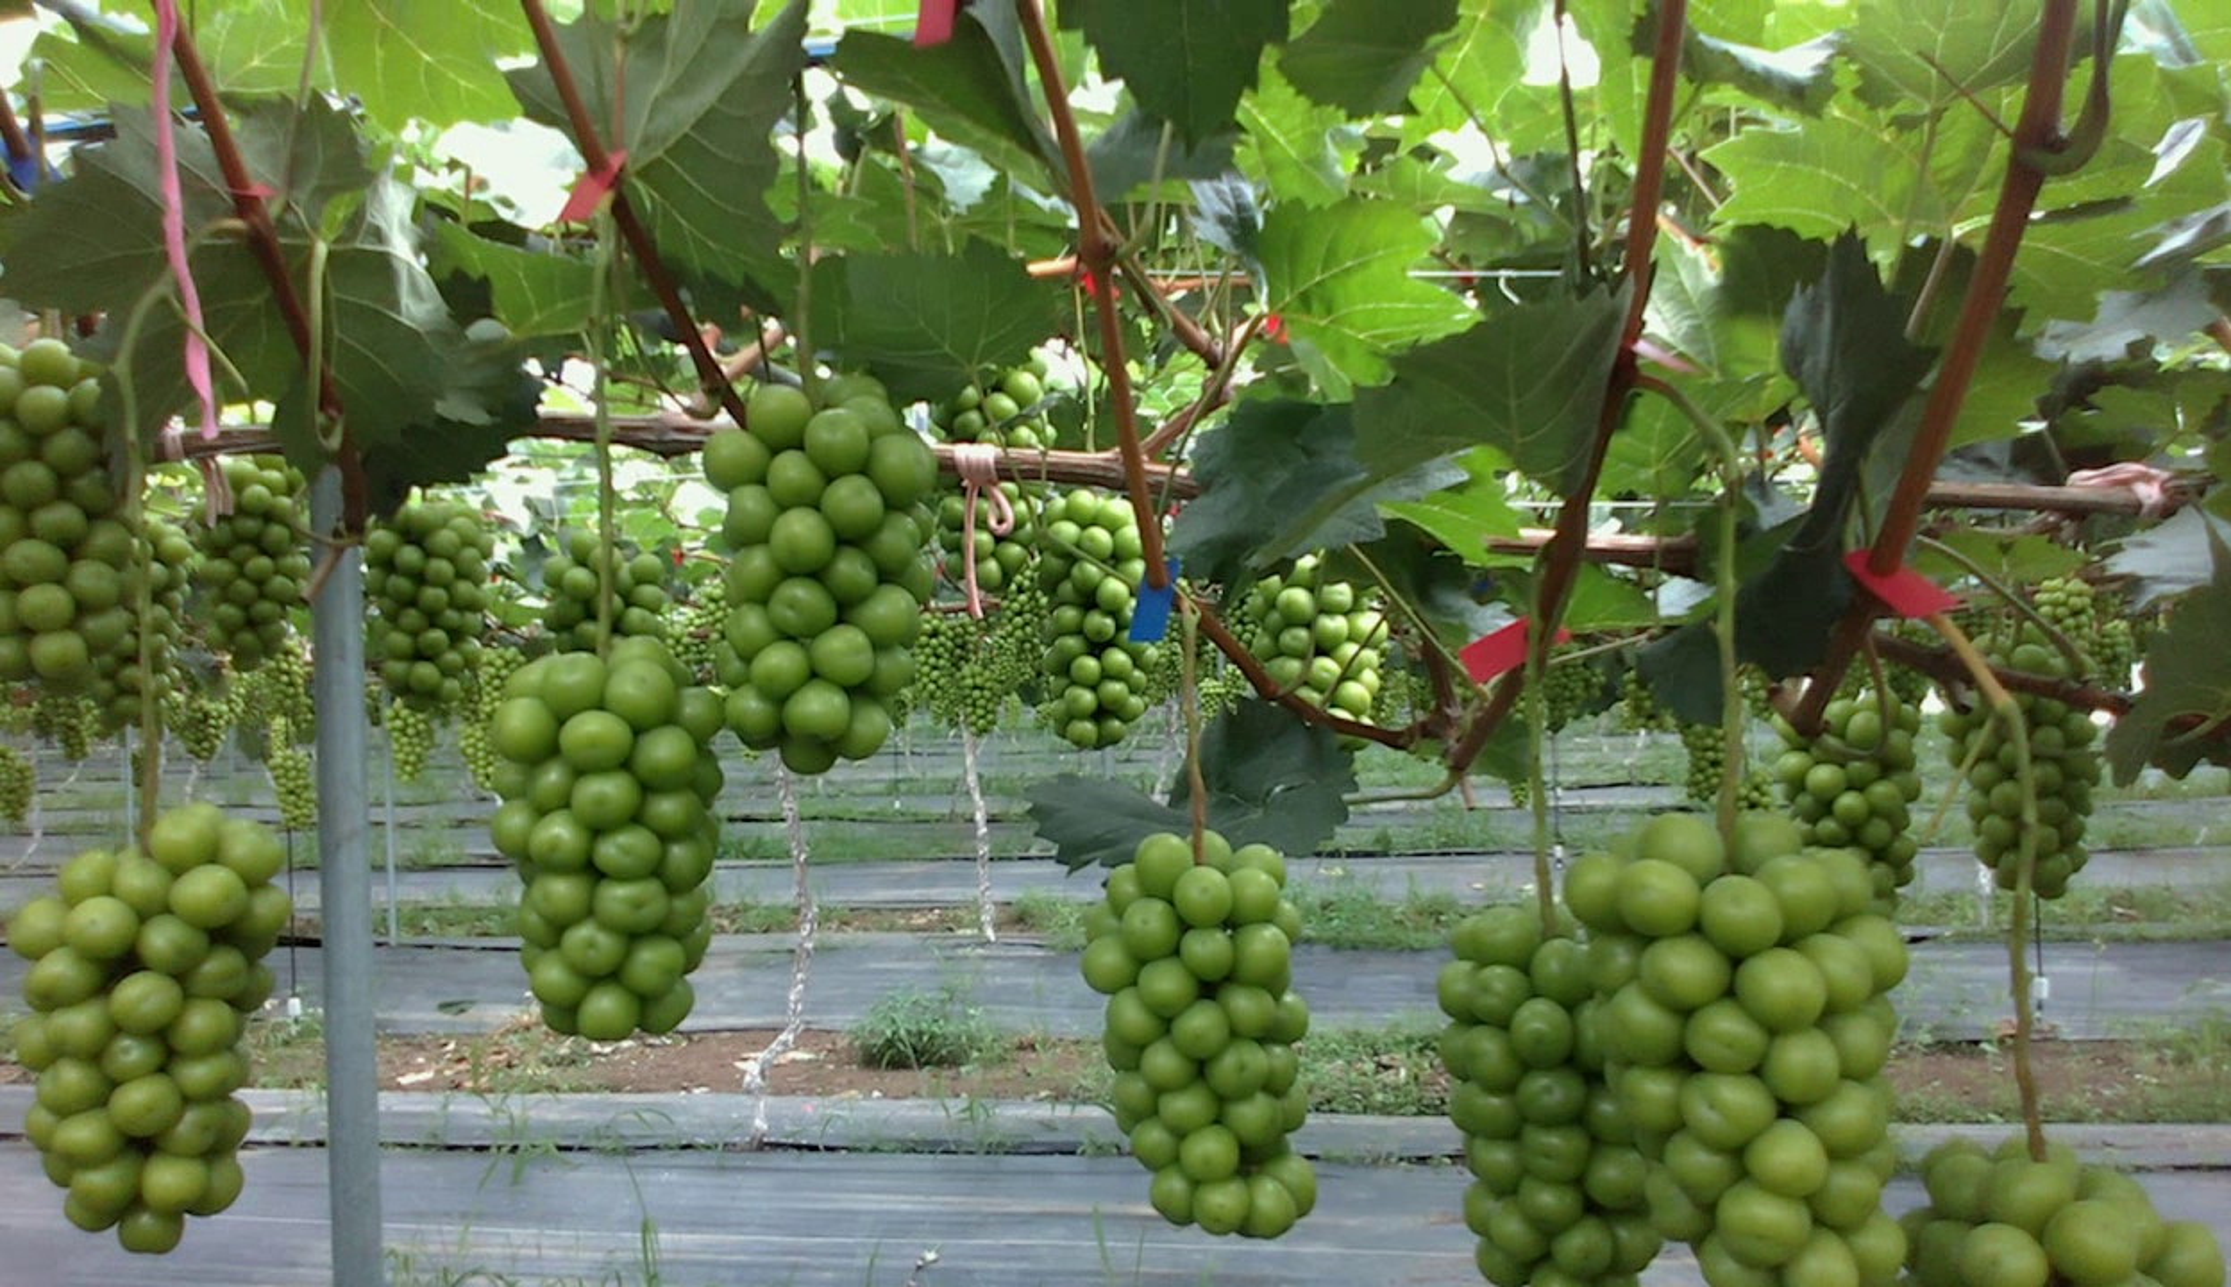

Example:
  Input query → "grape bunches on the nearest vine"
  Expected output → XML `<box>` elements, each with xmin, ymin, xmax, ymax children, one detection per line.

<box><xmin>488</xmin><ymin>633</ymin><xmax>728</xmax><ymax>1042</ymax></box>
<box><xmin>1562</xmin><ymin>812</ymin><xmax>1909</xmax><ymax>1285</ymax></box>
<box><xmin>1437</xmin><ymin>901</ymin><xmax>1673</xmax><ymax>1285</ymax></box>
<box><xmin>701</xmin><ymin>372</ymin><xmax>935</xmax><ymax>778</ymax></box>
<box><xmin>1080</xmin><ymin>831</ymin><xmax>1319</xmax><ymax>1239</ymax></box>
<box><xmin>5</xmin><ymin>801</ymin><xmax>293</xmax><ymax>1253</ymax></box>
<box><xmin>1895</xmin><ymin>1133</ymin><xmax>2226</xmax><ymax>1285</ymax></box>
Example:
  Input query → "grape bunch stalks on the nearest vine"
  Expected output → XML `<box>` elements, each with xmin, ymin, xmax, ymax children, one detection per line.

<box><xmin>1521</xmin><ymin>545</ymin><xmax>1557</xmax><ymax>940</ymax></box>
<box><xmin>1630</xmin><ymin>374</ymin><xmax>1741</xmax><ymax>876</ymax></box>
<box><xmin>1924</xmin><ymin>613</ymin><xmax>2047</xmax><ymax>1160</ymax></box>
<box><xmin>586</xmin><ymin>211</ymin><xmax>613</xmax><ymax>663</ymax></box>
<box><xmin>794</xmin><ymin>68</ymin><xmax>822</xmax><ymax>415</ymax></box>
<box><xmin>1176</xmin><ymin>599</ymin><xmax>1205</xmax><ymax>867</ymax></box>
<box><xmin>107</xmin><ymin>266</ymin><xmax>179</xmax><ymax>860</ymax></box>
